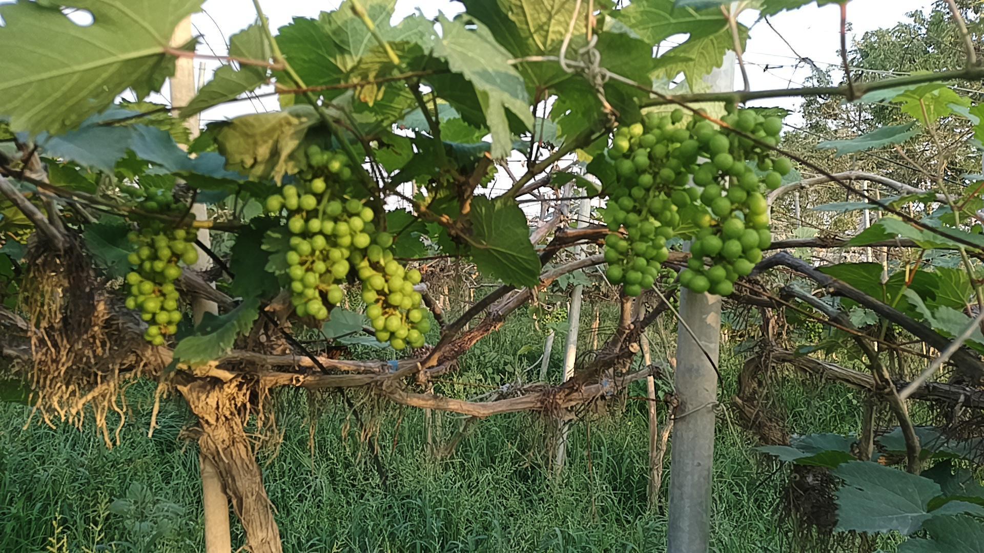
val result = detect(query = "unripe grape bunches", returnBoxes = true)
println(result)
[122,186,198,345]
[605,110,698,296]
[266,145,373,319]
[350,223,429,350]
[679,108,791,296]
